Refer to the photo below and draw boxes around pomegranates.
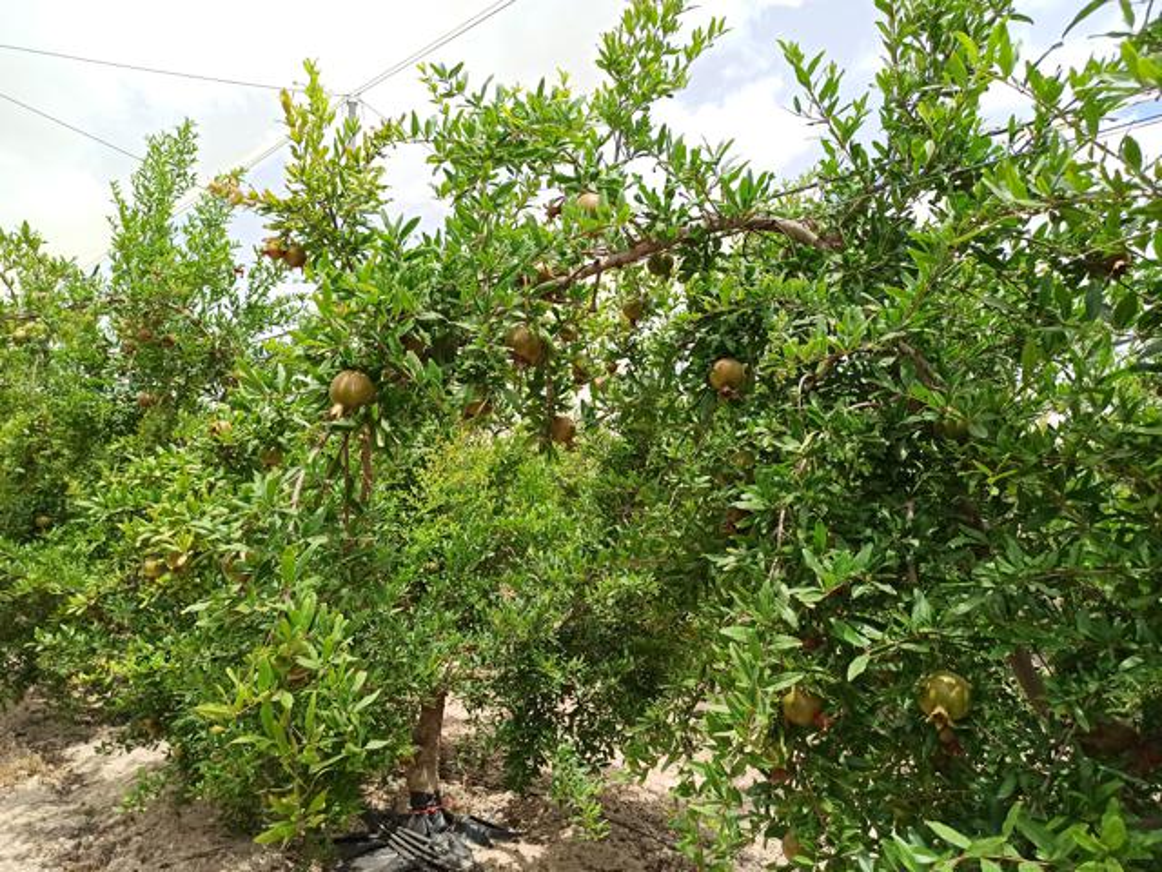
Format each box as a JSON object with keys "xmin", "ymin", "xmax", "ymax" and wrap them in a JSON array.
[
  {"xmin": 503, "ymin": 325, "xmax": 547, "ymax": 371},
  {"xmin": 327, "ymin": 367, "xmax": 376, "ymax": 421},
  {"xmin": 708, "ymin": 356, "xmax": 743, "ymax": 396},
  {"xmin": 781, "ymin": 830, "xmax": 803, "ymax": 861},
  {"xmin": 917, "ymin": 669, "xmax": 977, "ymax": 734},
  {"xmin": 260, "ymin": 451, "xmax": 281, "ymax": 471},
  {"xmin": 536, "ymin": 262, "xmax": 556, "ymax": 283},
  {"xmin": 781, "ymin": 690, "xmax": 833, "ymax": 730},
  {"xmin": 138, "ymin": 391, "xmax": 156, "ymax": 407},
  {"xmin": 207, "ymin": 420, "xmax": 232, "ymax": 438},
  {"xmin": 140, "ymin": 554, "xmax": 167, "ymax": 581},
  {"xmin": 646, "ymin": 253, "xmax": 674, "ymax": 274},
  {"xmin": 465, "ymin": 403, "xmax": 492, "ymax": 416},
  {"xmin": 623, "ymin": 302, "xmax": 643, "ymax": 327},
  {"xmin": 543, "ymin": 193, "xmax": 599, "ymax": 220},
  {"xmin": 283, "ymin": 245, "xmax": 309, "ymax": 269},
  {"xmin": 260, "ymin": 236, "xmax": 285, "ymax": 260},
  {"xmin": 572, "ymin": 365, "xmax": 588, "ymax": 383},
  {"xmin": 559, "ymin": 323, "xmax": 577, "ymax": 343},
  {"xmin": 550, "ymin": 416, "xmax": 579, "ymax": 452}
]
